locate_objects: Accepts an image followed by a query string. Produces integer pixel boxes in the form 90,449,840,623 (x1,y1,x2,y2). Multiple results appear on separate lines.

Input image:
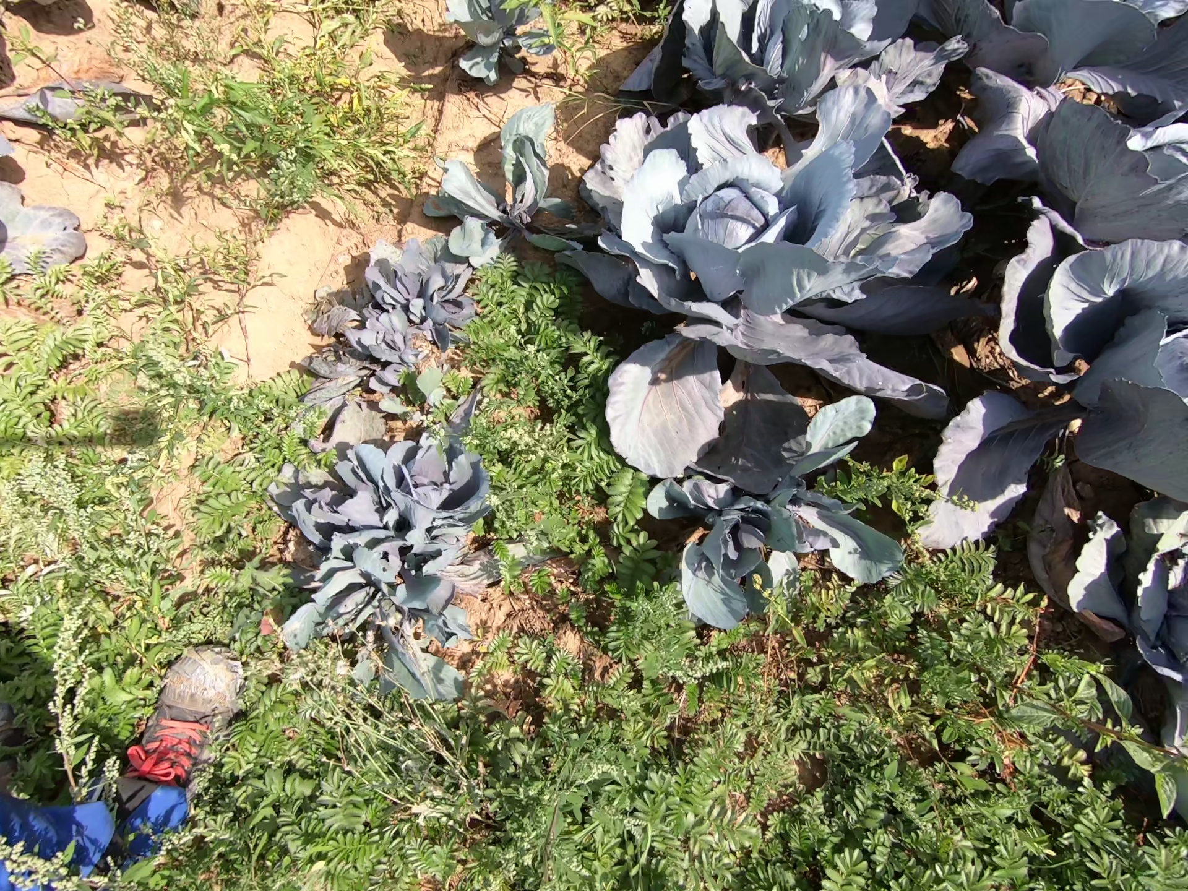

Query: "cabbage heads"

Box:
772,0,841,69
1113,132,1187,220
688,186,781,274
